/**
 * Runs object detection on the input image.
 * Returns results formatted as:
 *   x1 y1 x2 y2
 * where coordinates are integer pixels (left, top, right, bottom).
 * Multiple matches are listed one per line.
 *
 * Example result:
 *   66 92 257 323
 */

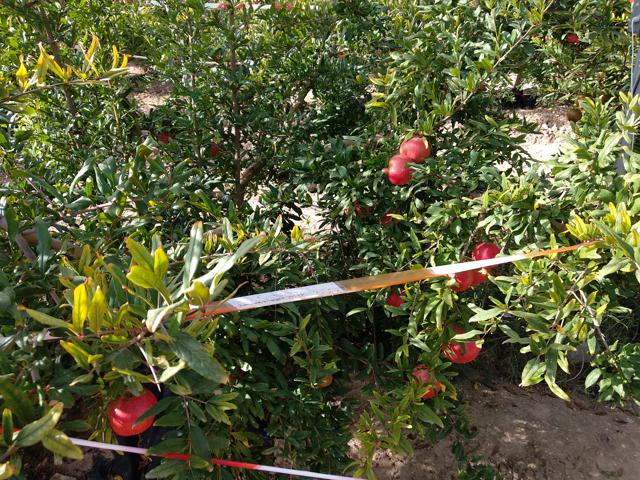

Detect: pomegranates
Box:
385 287 406 307
413 363 442 399
382 154 415 186
400 135 431 164
470 269 487 286
472 242 500 261
451 269 473 292
107 387 157 437
442 324 482 364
